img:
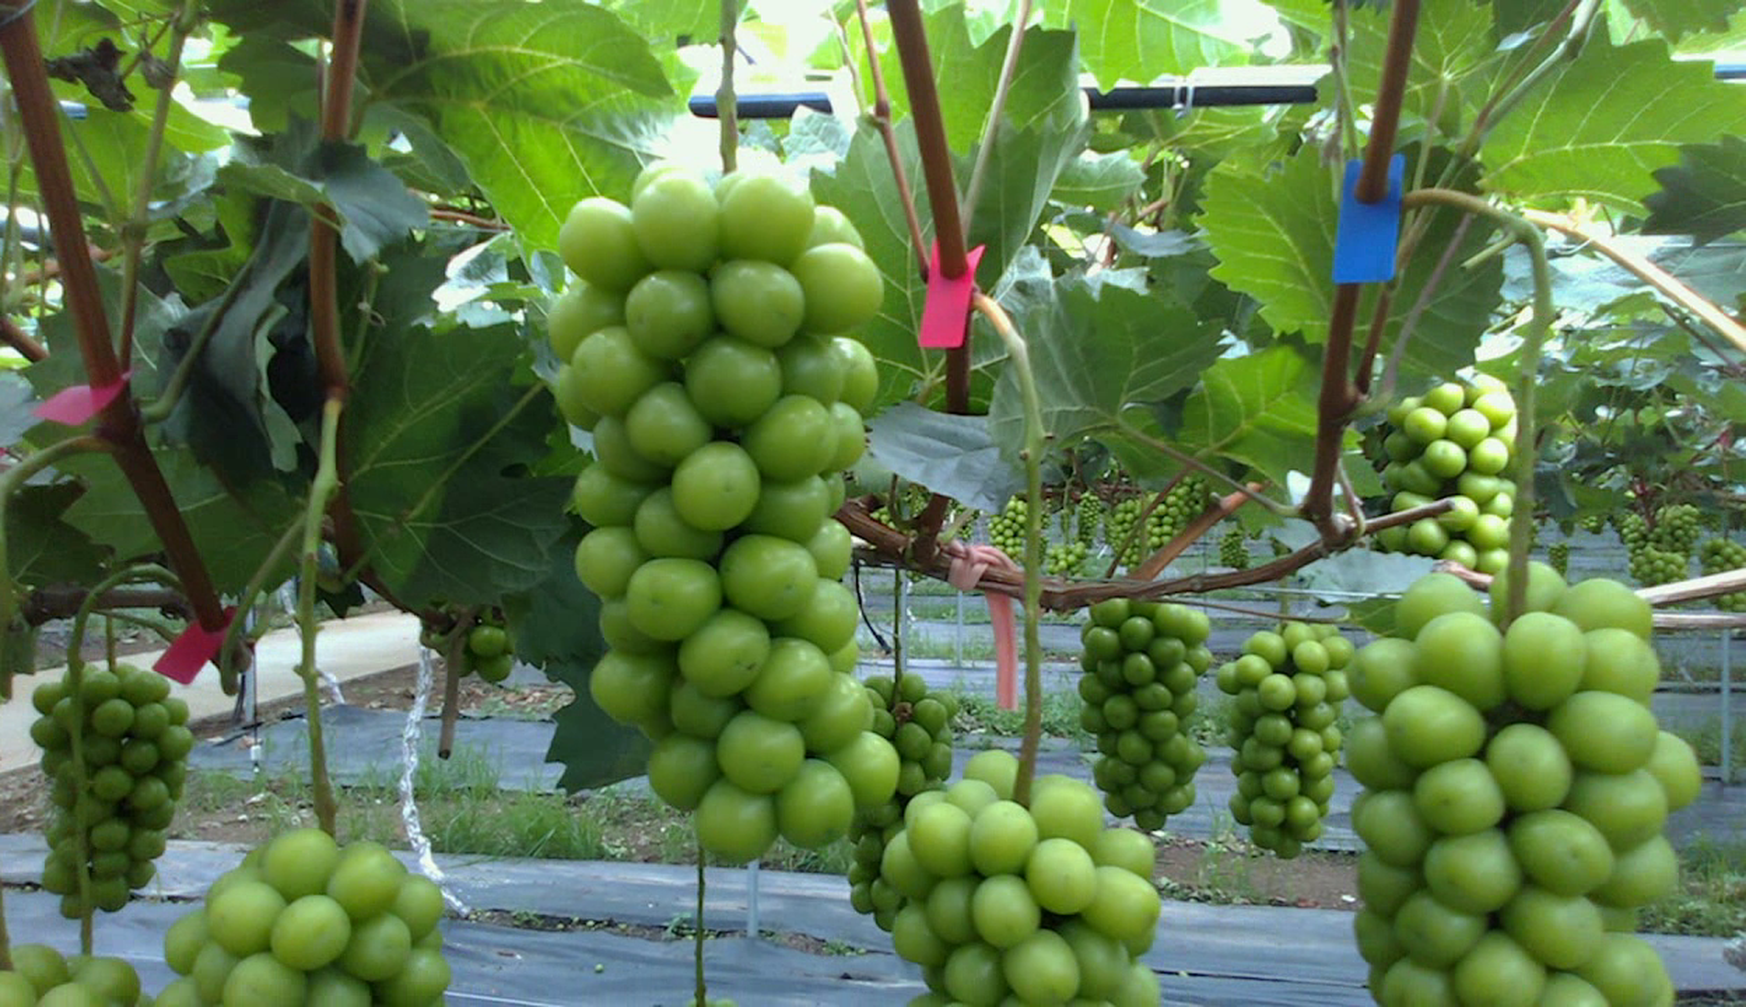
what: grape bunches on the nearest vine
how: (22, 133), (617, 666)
(151, 828), (453, 1004)
(879, 750), (1161, 1006)
(0, 944), (151, 1006)
(546, 159), (900, 862)
(1343, 558), (1703, 1006)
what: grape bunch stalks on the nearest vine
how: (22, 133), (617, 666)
(977, 291), (1044, 808)
(715, 1), (739, 173)
(64, 564), (187, 959)
(1405, 189), (1554, 628)
(298, 394), (341, 841)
